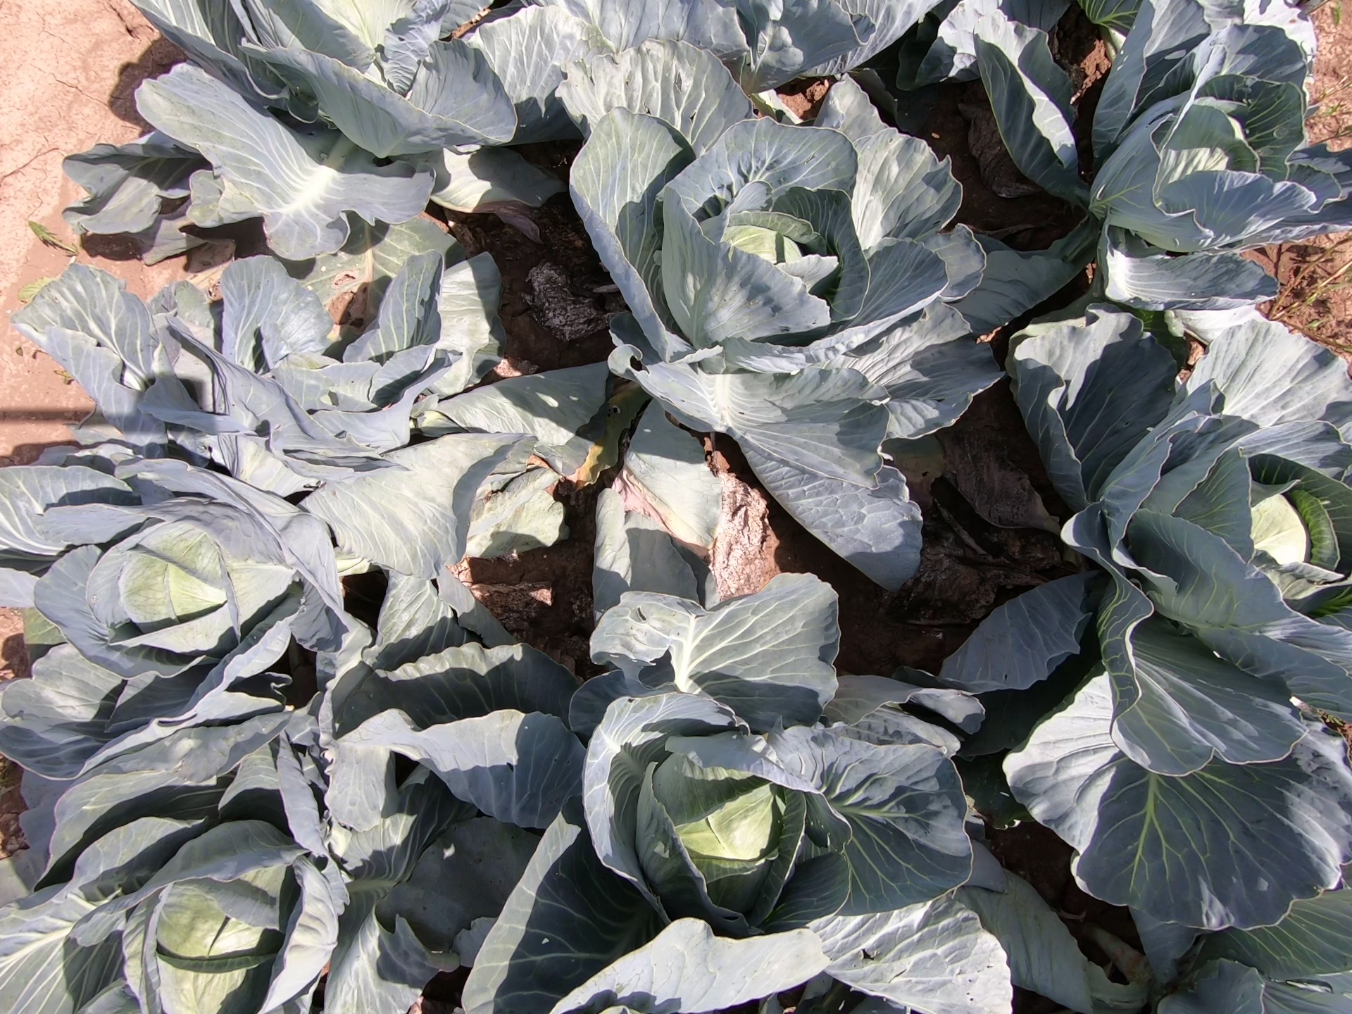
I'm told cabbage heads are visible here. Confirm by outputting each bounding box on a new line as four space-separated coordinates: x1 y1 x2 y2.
1175 476 1318 594
639 740 798 939
1108 108 1255 238
244 0 430 94
110 511 288 656
120 824 336 1010
681 211 818 342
